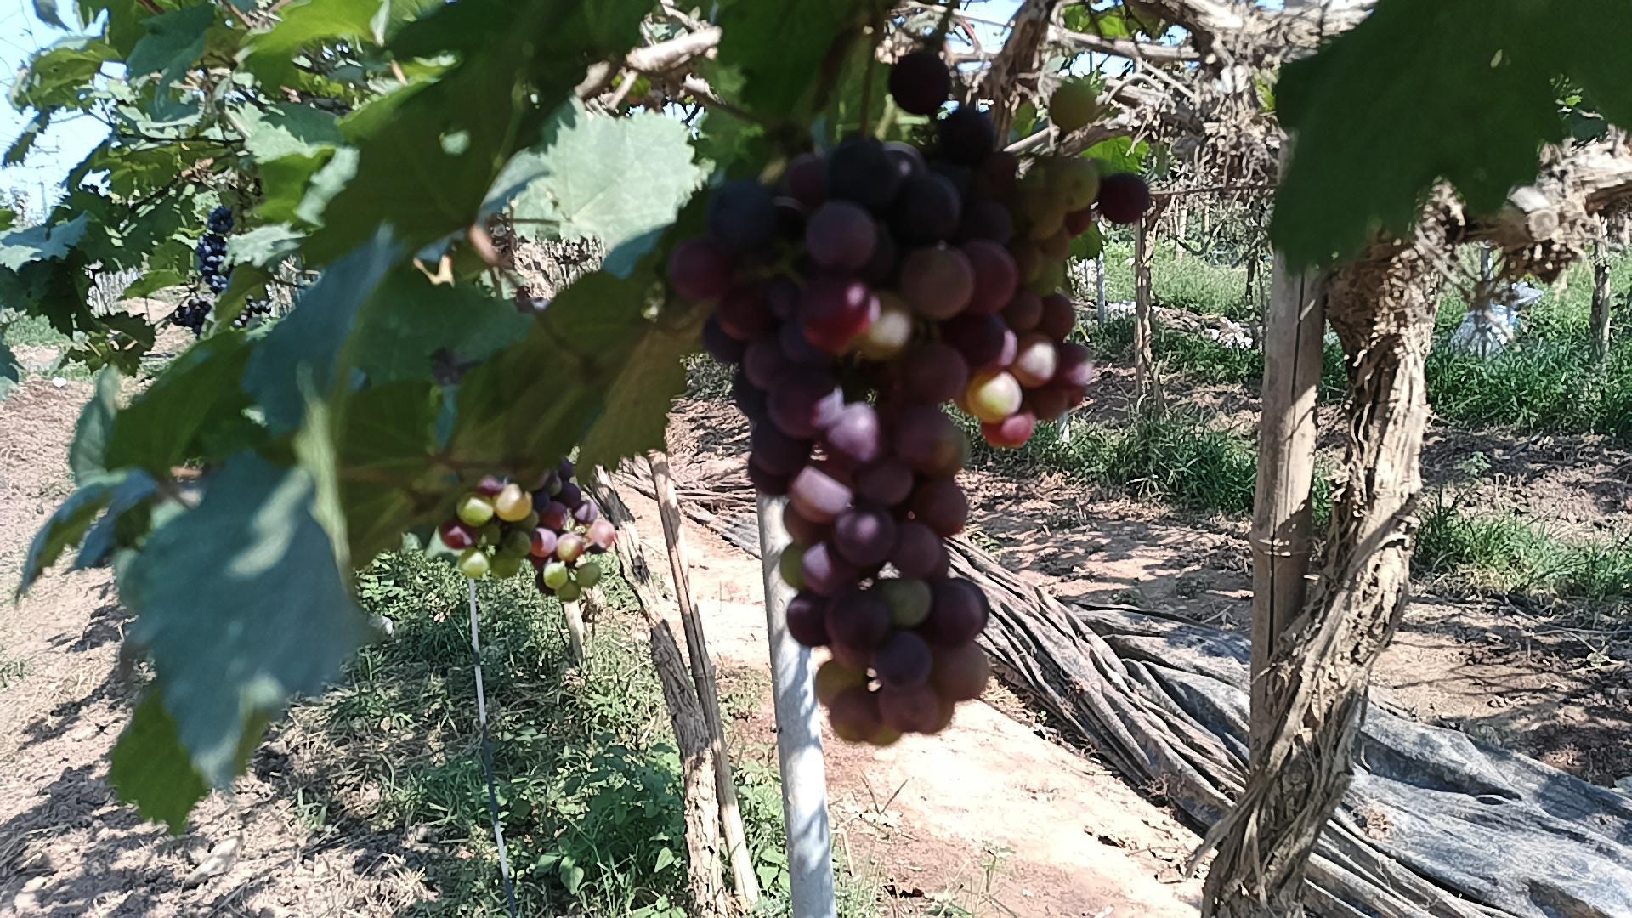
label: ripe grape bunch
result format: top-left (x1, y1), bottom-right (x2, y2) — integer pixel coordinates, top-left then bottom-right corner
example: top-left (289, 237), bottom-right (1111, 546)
top-left (167, 205), bottom-right (270, 333)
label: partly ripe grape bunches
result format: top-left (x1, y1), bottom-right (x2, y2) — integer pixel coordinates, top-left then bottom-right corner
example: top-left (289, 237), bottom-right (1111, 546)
top-left (438, 460), bottom-right (615, 603)
top-left (668, 52), bottom-right (1147, 745)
